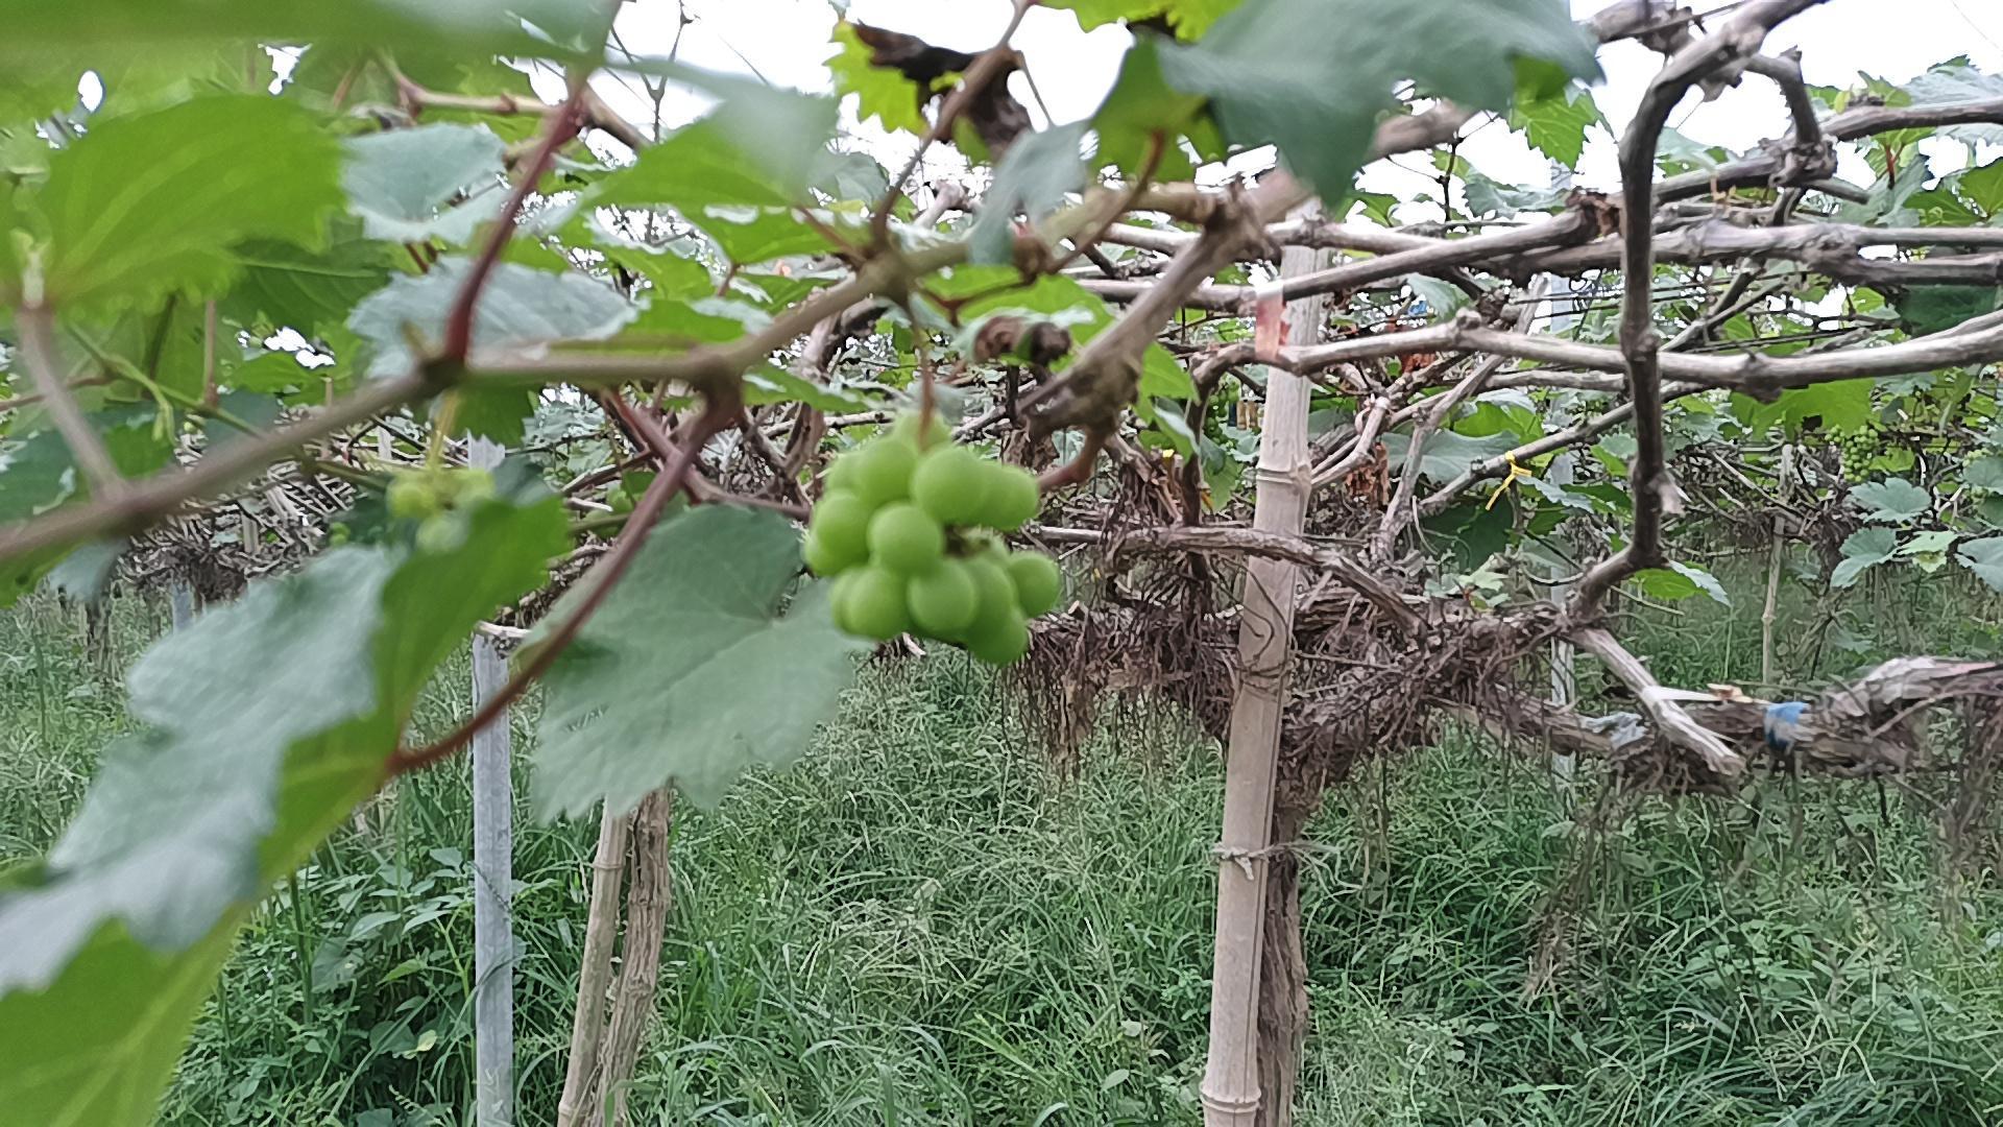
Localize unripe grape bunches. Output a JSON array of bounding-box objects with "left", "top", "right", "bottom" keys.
[
  {"left": 384, "top": 465, "right": 500, "bottom": 556},
  {"left": 802, "top": 414, "right": 1060, "bottom": 664}
]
